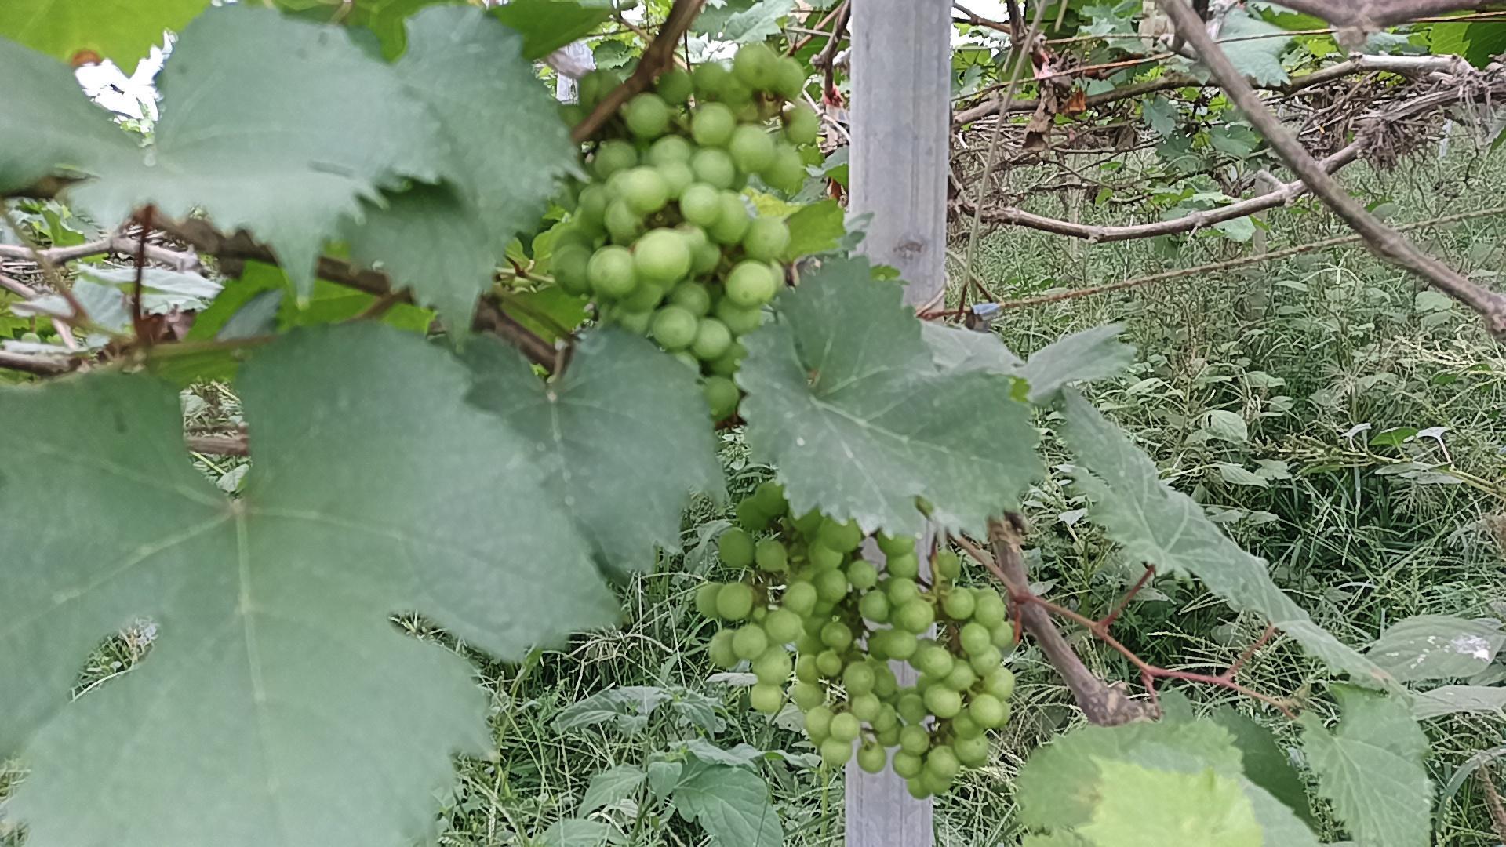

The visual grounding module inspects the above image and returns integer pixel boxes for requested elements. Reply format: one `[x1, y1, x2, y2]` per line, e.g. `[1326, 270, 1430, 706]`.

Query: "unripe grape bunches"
[701, 483, 1012, 798]
[543, 45, 817, 423]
